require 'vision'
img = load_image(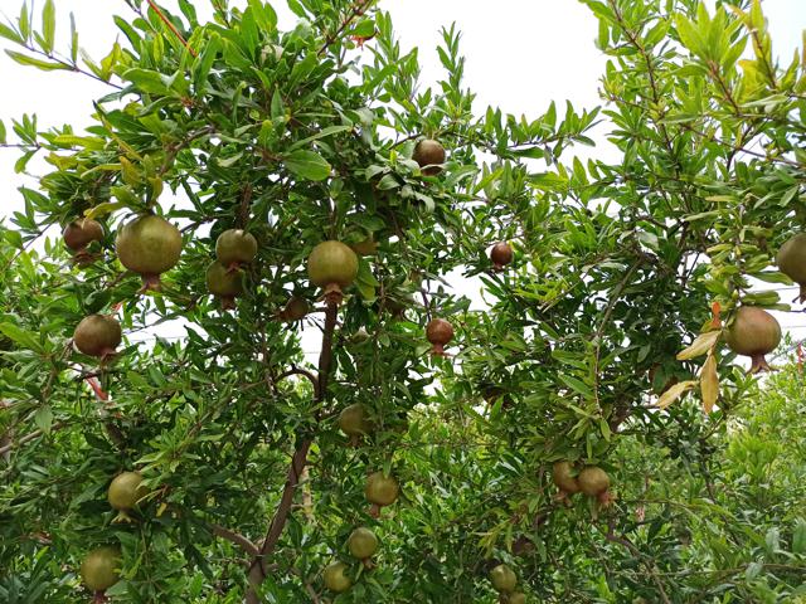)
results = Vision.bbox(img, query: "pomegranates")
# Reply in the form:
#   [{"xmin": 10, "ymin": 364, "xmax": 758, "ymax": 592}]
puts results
[
  {"xmin": 349, "ymin": 527, "xmax": 379, "ymax": 570},
  {"xmin": 107, "ymin": 471, "xmax": 151, "ymax": 525},
  {"xmin": 350, "ymin": 238, "xmax": 377, "ymax": 255},
  {"xmin": 366, "ymin": 469, "xmax": 399, "ymax": 518},
  {"xmin": 117, "ymin": 214, "xmax": 184, "ymax": 294},
  {"xmin": 63, "ymin": 218, "xmax": 106, "ymax": 263},
  {"xmin": 79, "ymin": 545, "xmax": 120, "ymax": 604},
  {"xmin": 324, "ymin": 560, "xmax": 353, "ymax": 593},
  {"xmin": 339, "ymin": 401, "xmax": 377, "ymax": 448},
  {"xmin": 214, "ymin": 228, "xmax": 257, "ymax": 276},
  {"xmin": 500, "ymin": 590, "xmax": 525, "ymax": 604},
  {"xmin": 285, "ymin": 297, "xmax": 309, "ymax": 320},
  {"xmin": 577, "ymin": 466, "xmax": 610, "ymax": 505},
  {"xmin": 307, "ymin": 239, "xmax": 359, "ymax": 305},
  {"xmin": 73, "ymin": 313, "xmax": 122, "ymax": 366},
  {"xmin": 724, "ymin": 305, "xmax": 782, "ymax": 374},
  {"xmin": 491, "ymin": 562, "xmax": 516, "ymax": 603},
  {"xmin": 776, "ymin": 232, "xmax": 806, "ymax": 306},
  {"xmin": 205, "ymin": 259, "xmax": 244, "ymax": 312},
  {"xmin": 552, "ymin": 461, "xmax": 582, "ymax": 506},
  {"xmin": 426, "ymin": 320, "xmax": 453, "ymax": 357},
  {"xmin": 412, "ymin": 140, "xmax": 445, "ymax": 176},
  {"xmin": 490, "ymin": 243, "xmax": 513, "ymax": 273}
]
